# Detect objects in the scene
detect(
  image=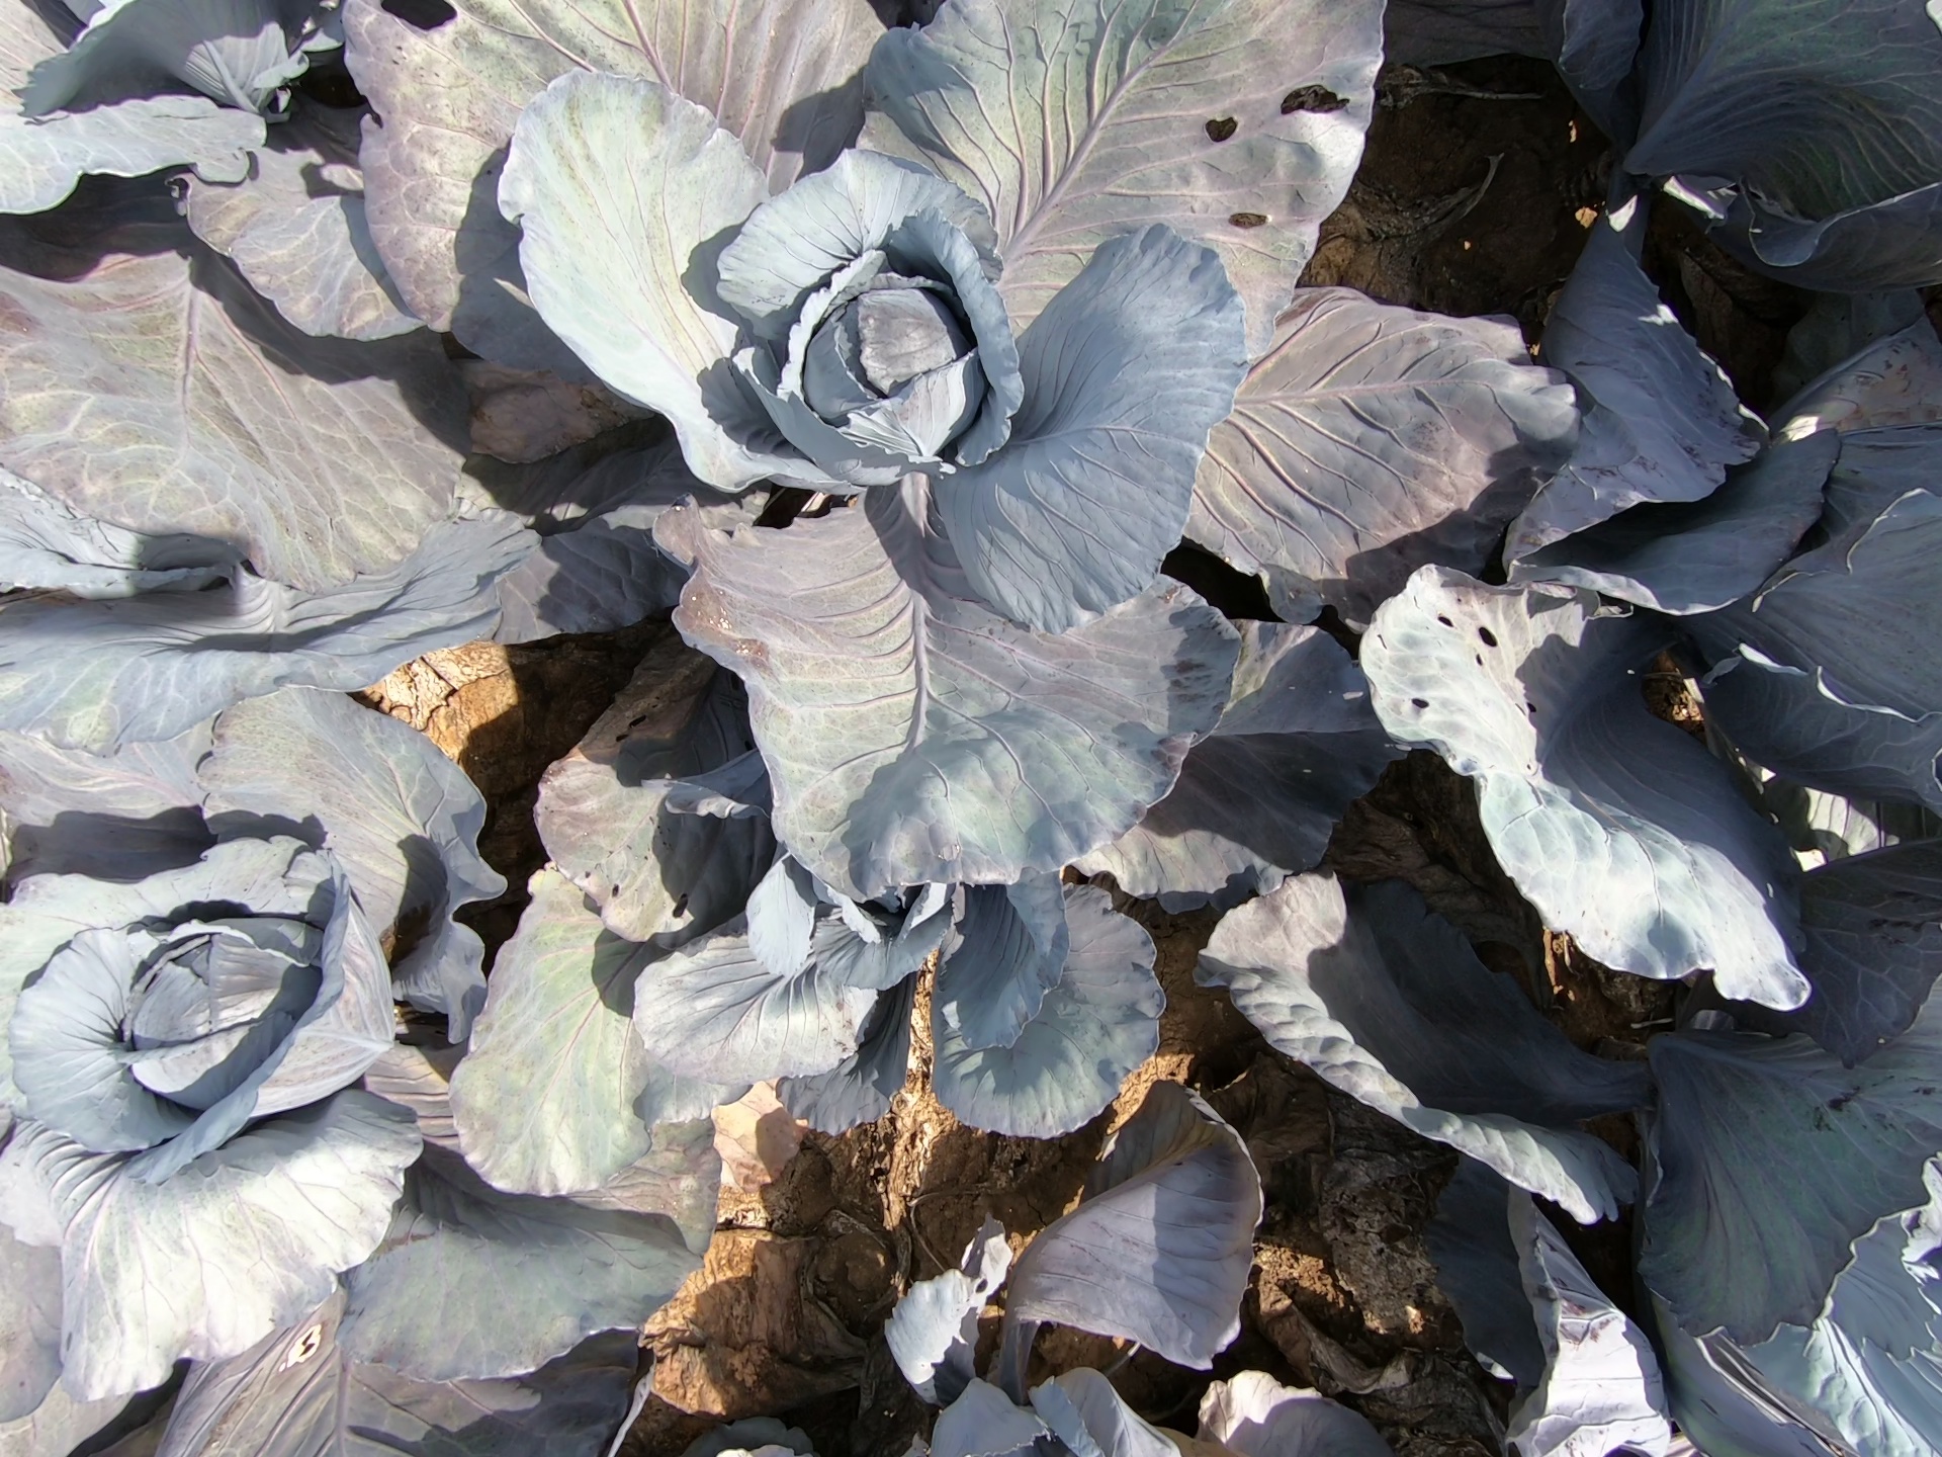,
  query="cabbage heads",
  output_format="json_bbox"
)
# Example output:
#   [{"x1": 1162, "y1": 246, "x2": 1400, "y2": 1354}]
[
  {"x1": 125, "y1": 924, "x2": 382, "y2": 1109},
  {"x1": 809, "y1": 799, "x2": 955, "y2": 913},
  {"x1": 799, "y1": 270, "x2": 980, "y2": 455},
  {"x1": 1801, "y1": 1115, "x2": 1939, "y2": 1264}
]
